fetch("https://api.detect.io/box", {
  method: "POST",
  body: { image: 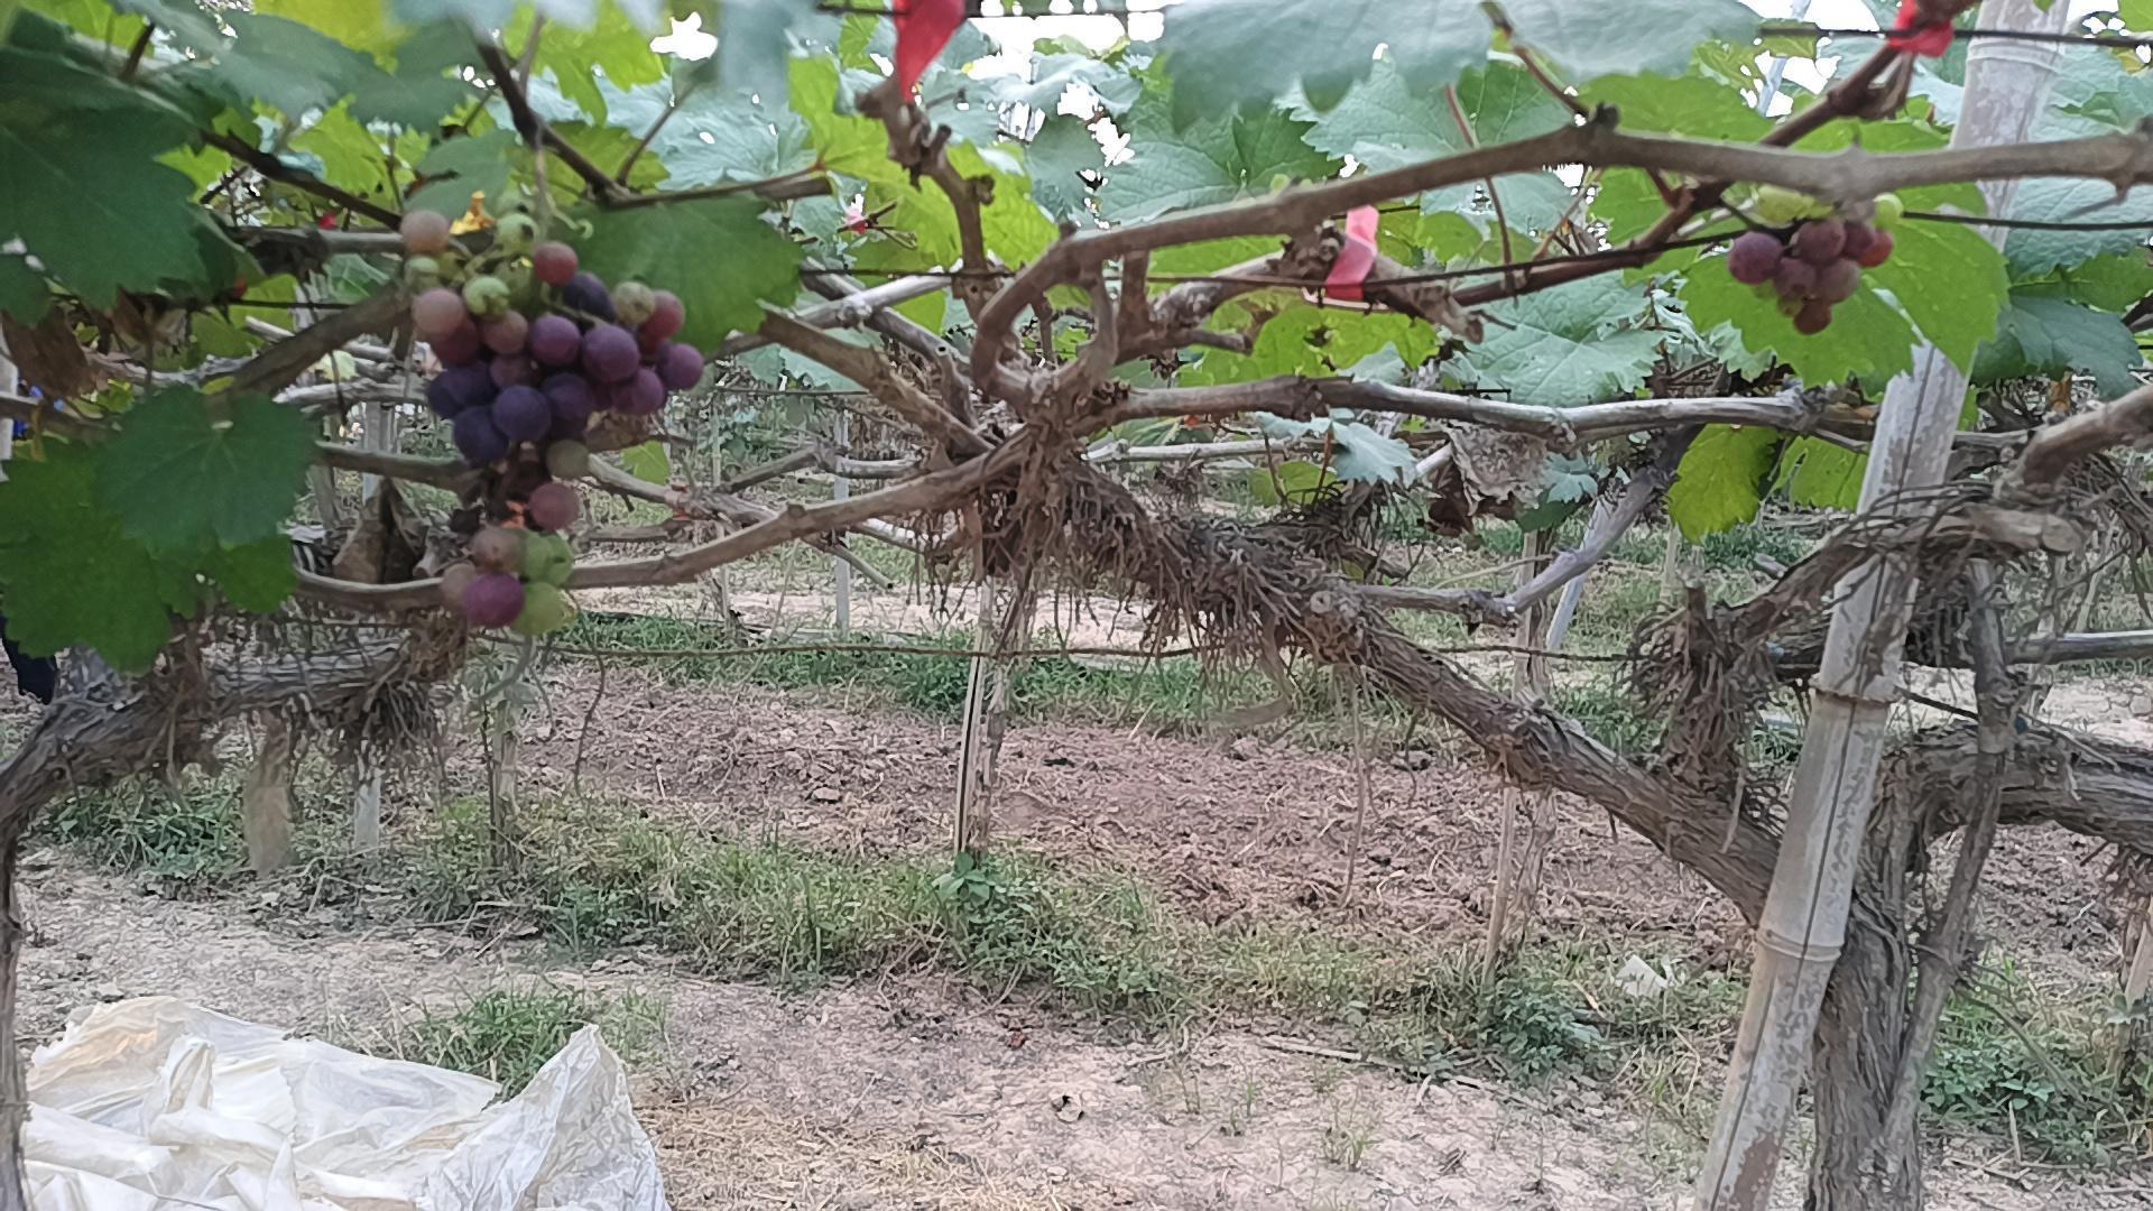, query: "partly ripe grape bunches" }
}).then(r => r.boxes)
[398,209,704,634]
[1727,182,1907,335]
